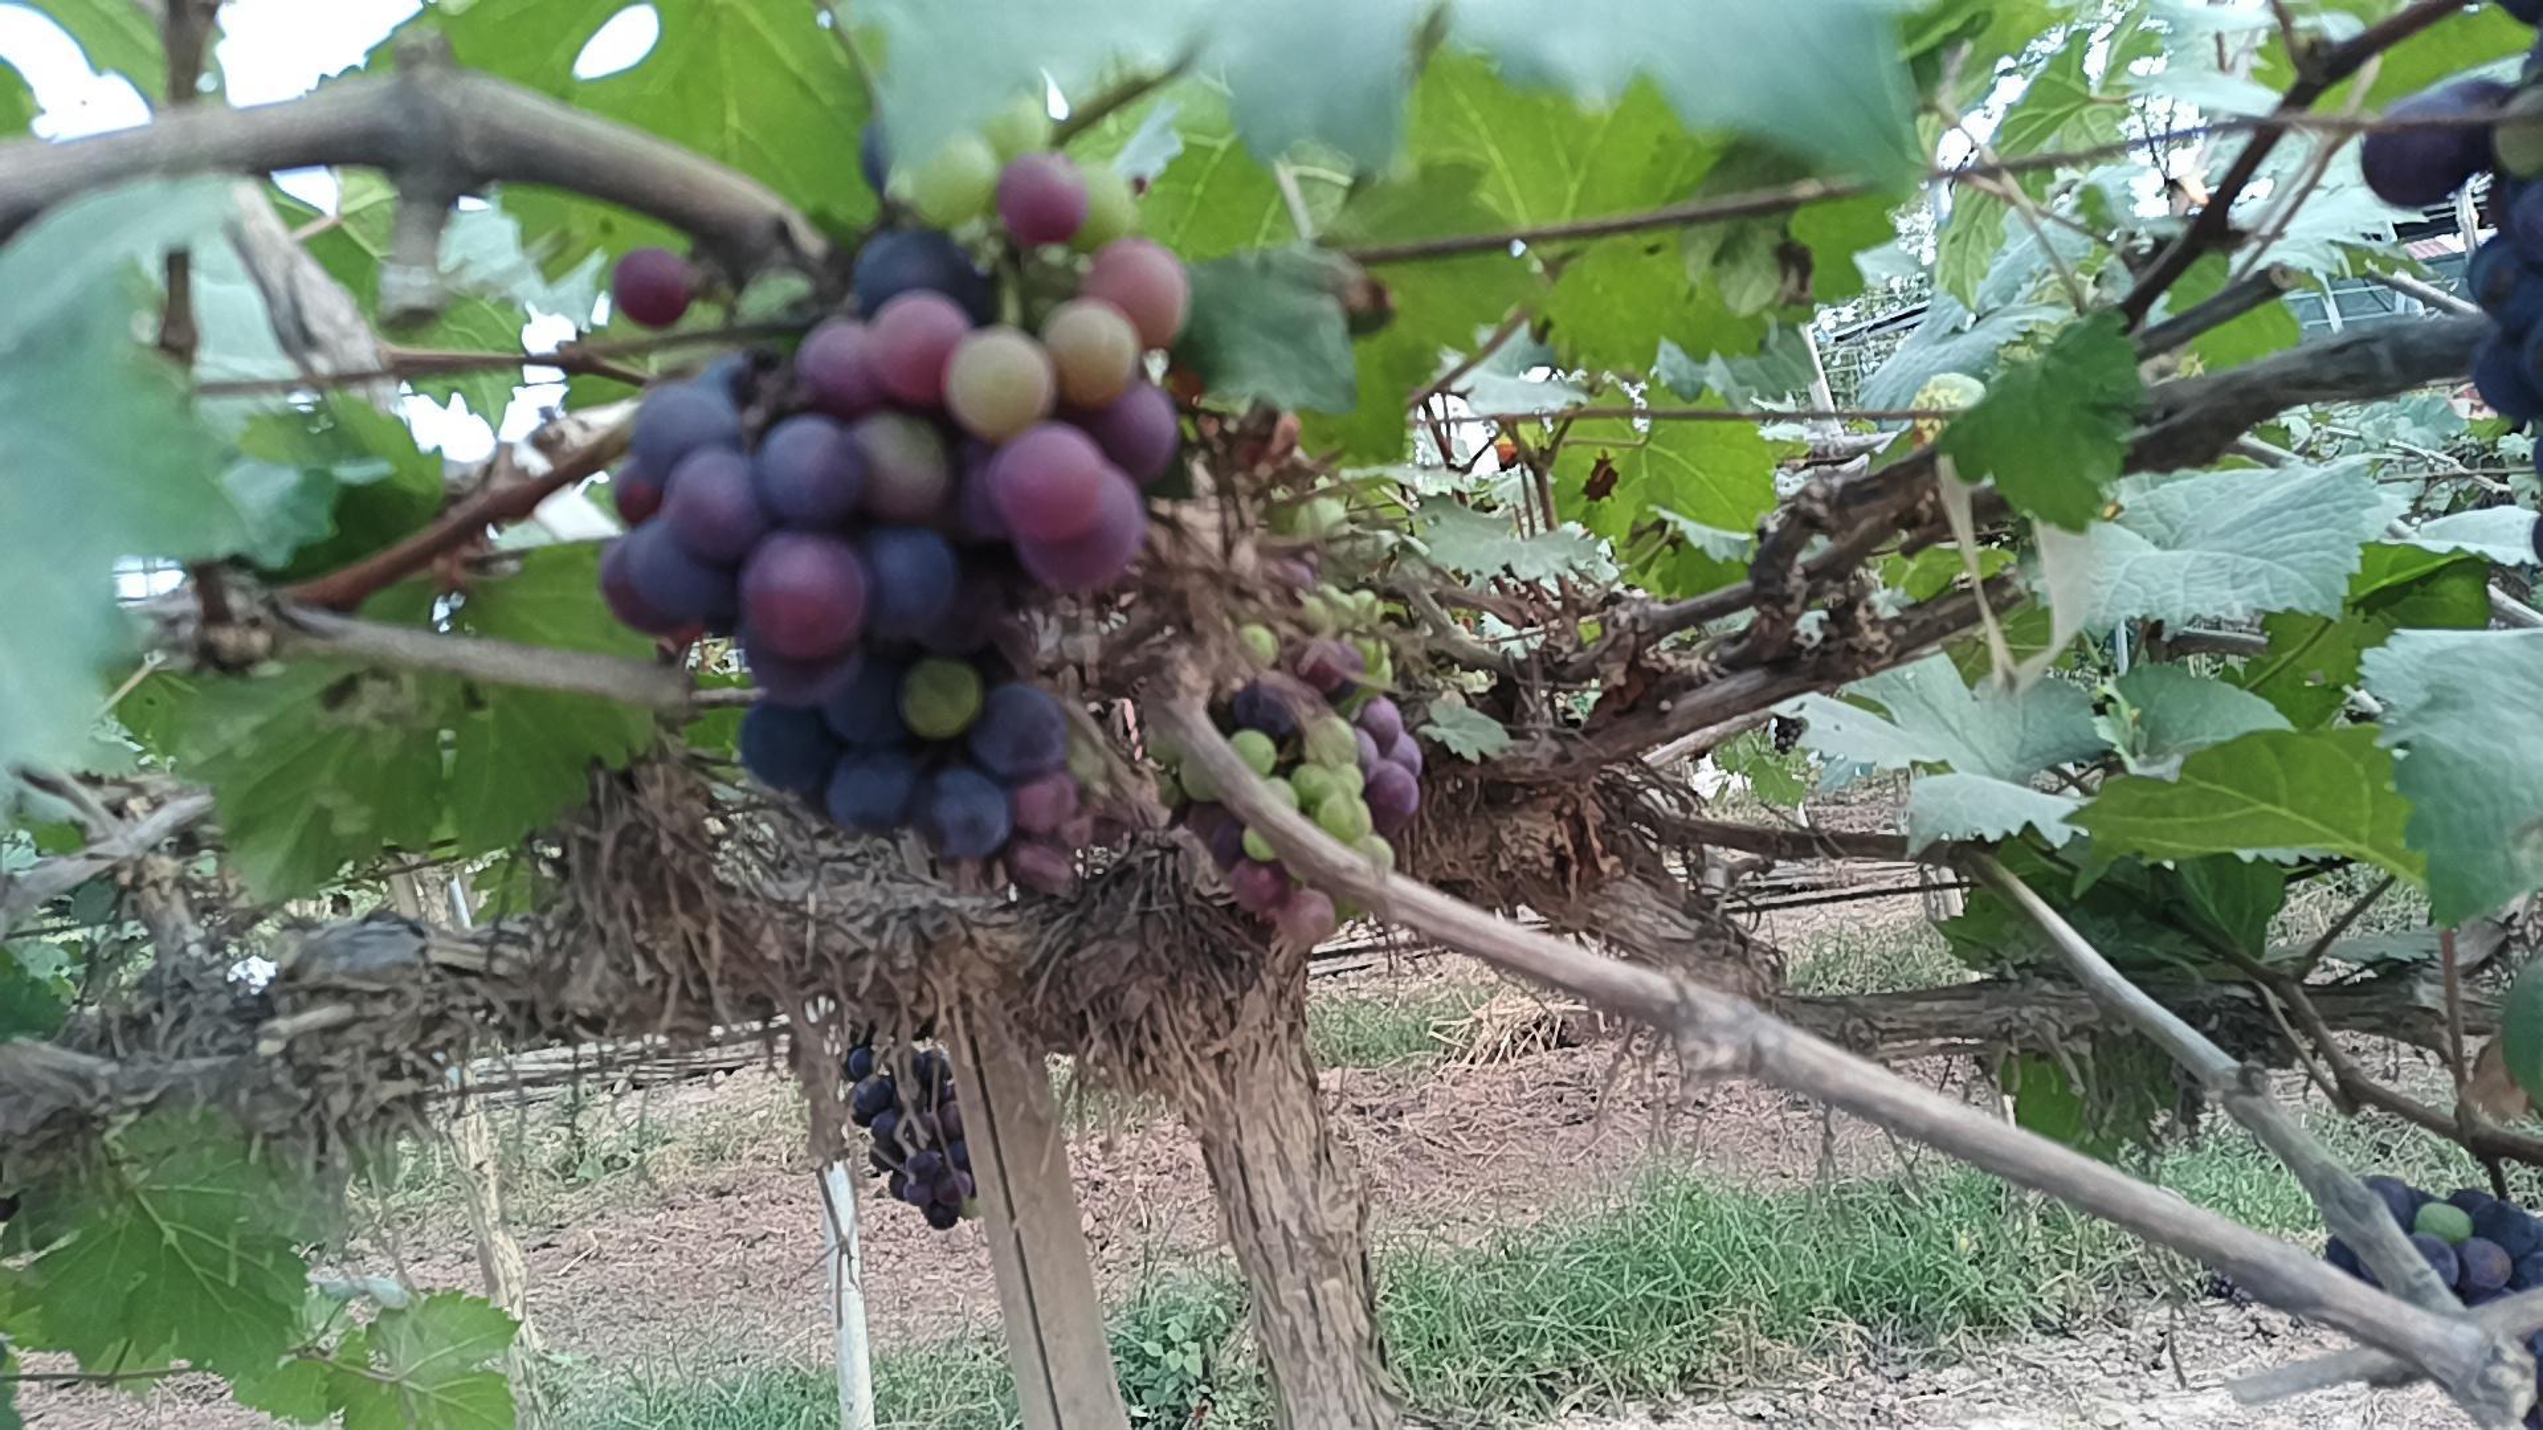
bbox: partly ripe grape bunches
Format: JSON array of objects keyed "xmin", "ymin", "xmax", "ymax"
[
  {"xmin": 2360, "ymin": 32, "xmax": 2542, "ymax": 436},
  {"xmin": 2309, "ymin": 1174, "xmax": 2542, "ymax": 1429},
  {"xmin": 600, "ymin": 152, "xmax": 1191, "ymax": 890},
  {"xmin": 1151, "ymin": 498, "xmax": 1422, "ymax": 947},
  {"xmin": 841, "ymin": 1030, "xmax": 975, "ymax": 1229}
]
